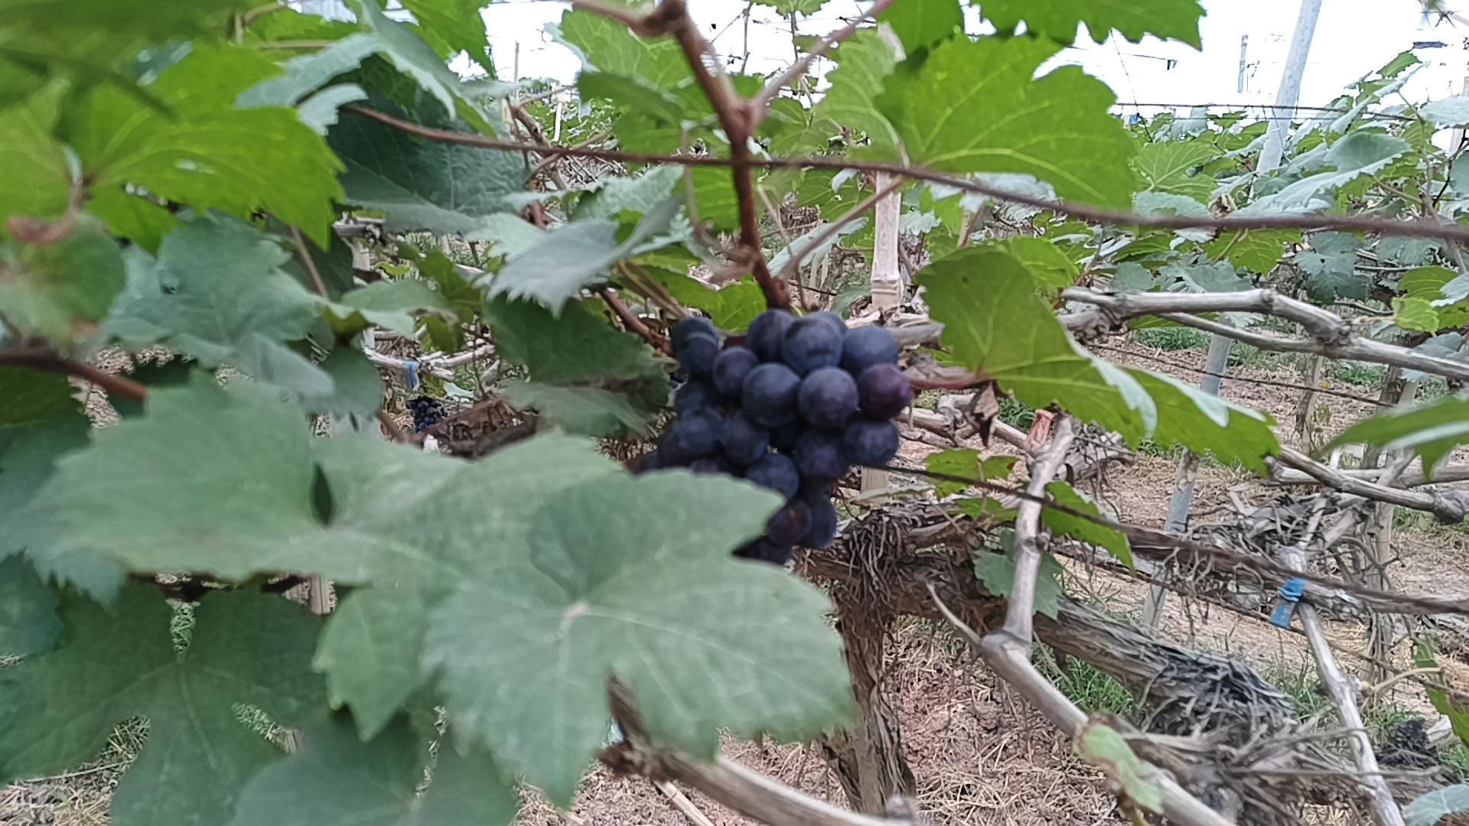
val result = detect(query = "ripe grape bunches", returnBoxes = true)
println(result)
[634,307,910,563]
[406,395,448,435]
